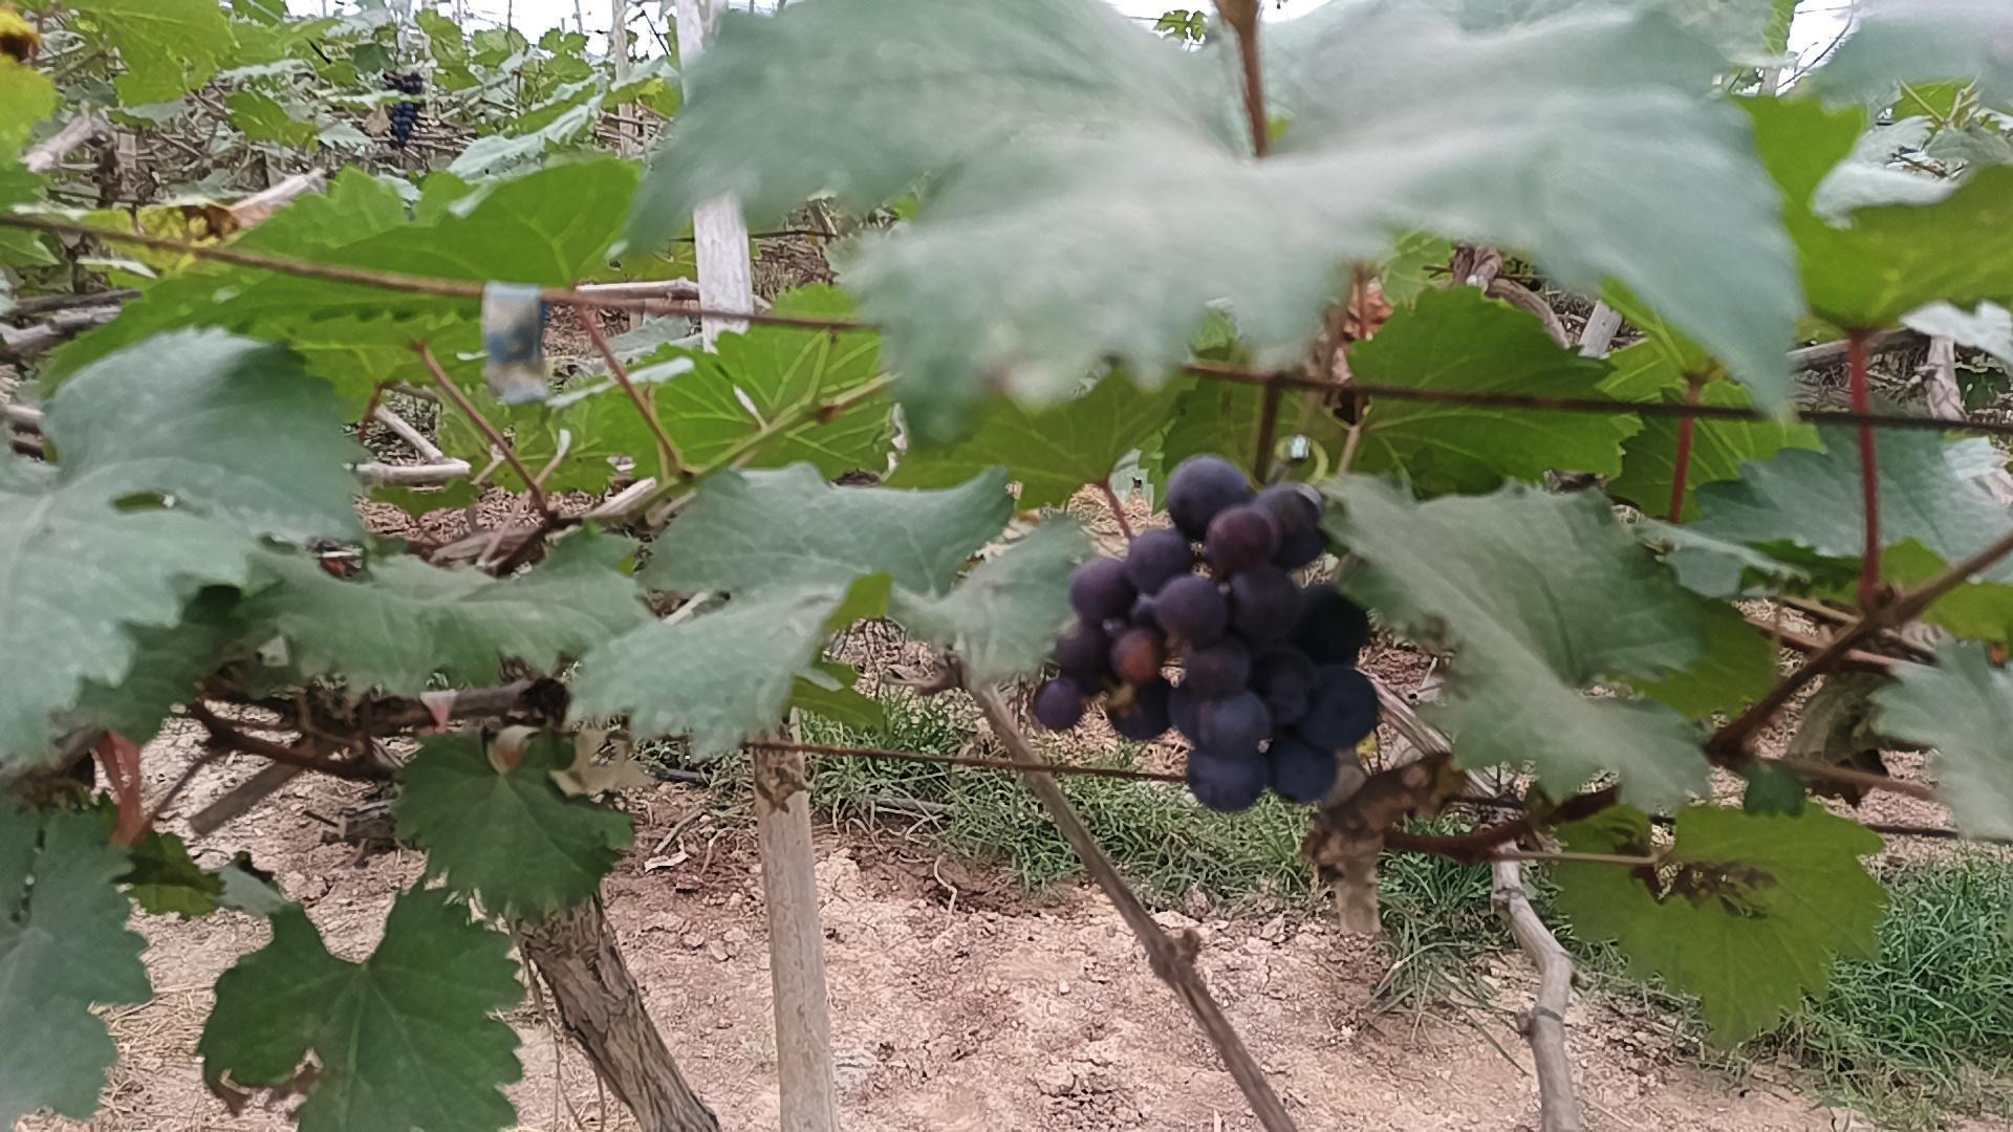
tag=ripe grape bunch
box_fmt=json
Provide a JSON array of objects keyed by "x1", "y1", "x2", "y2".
[{"x1": 1033, "y1": 456, "x2": 1379, "y2": 810}]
